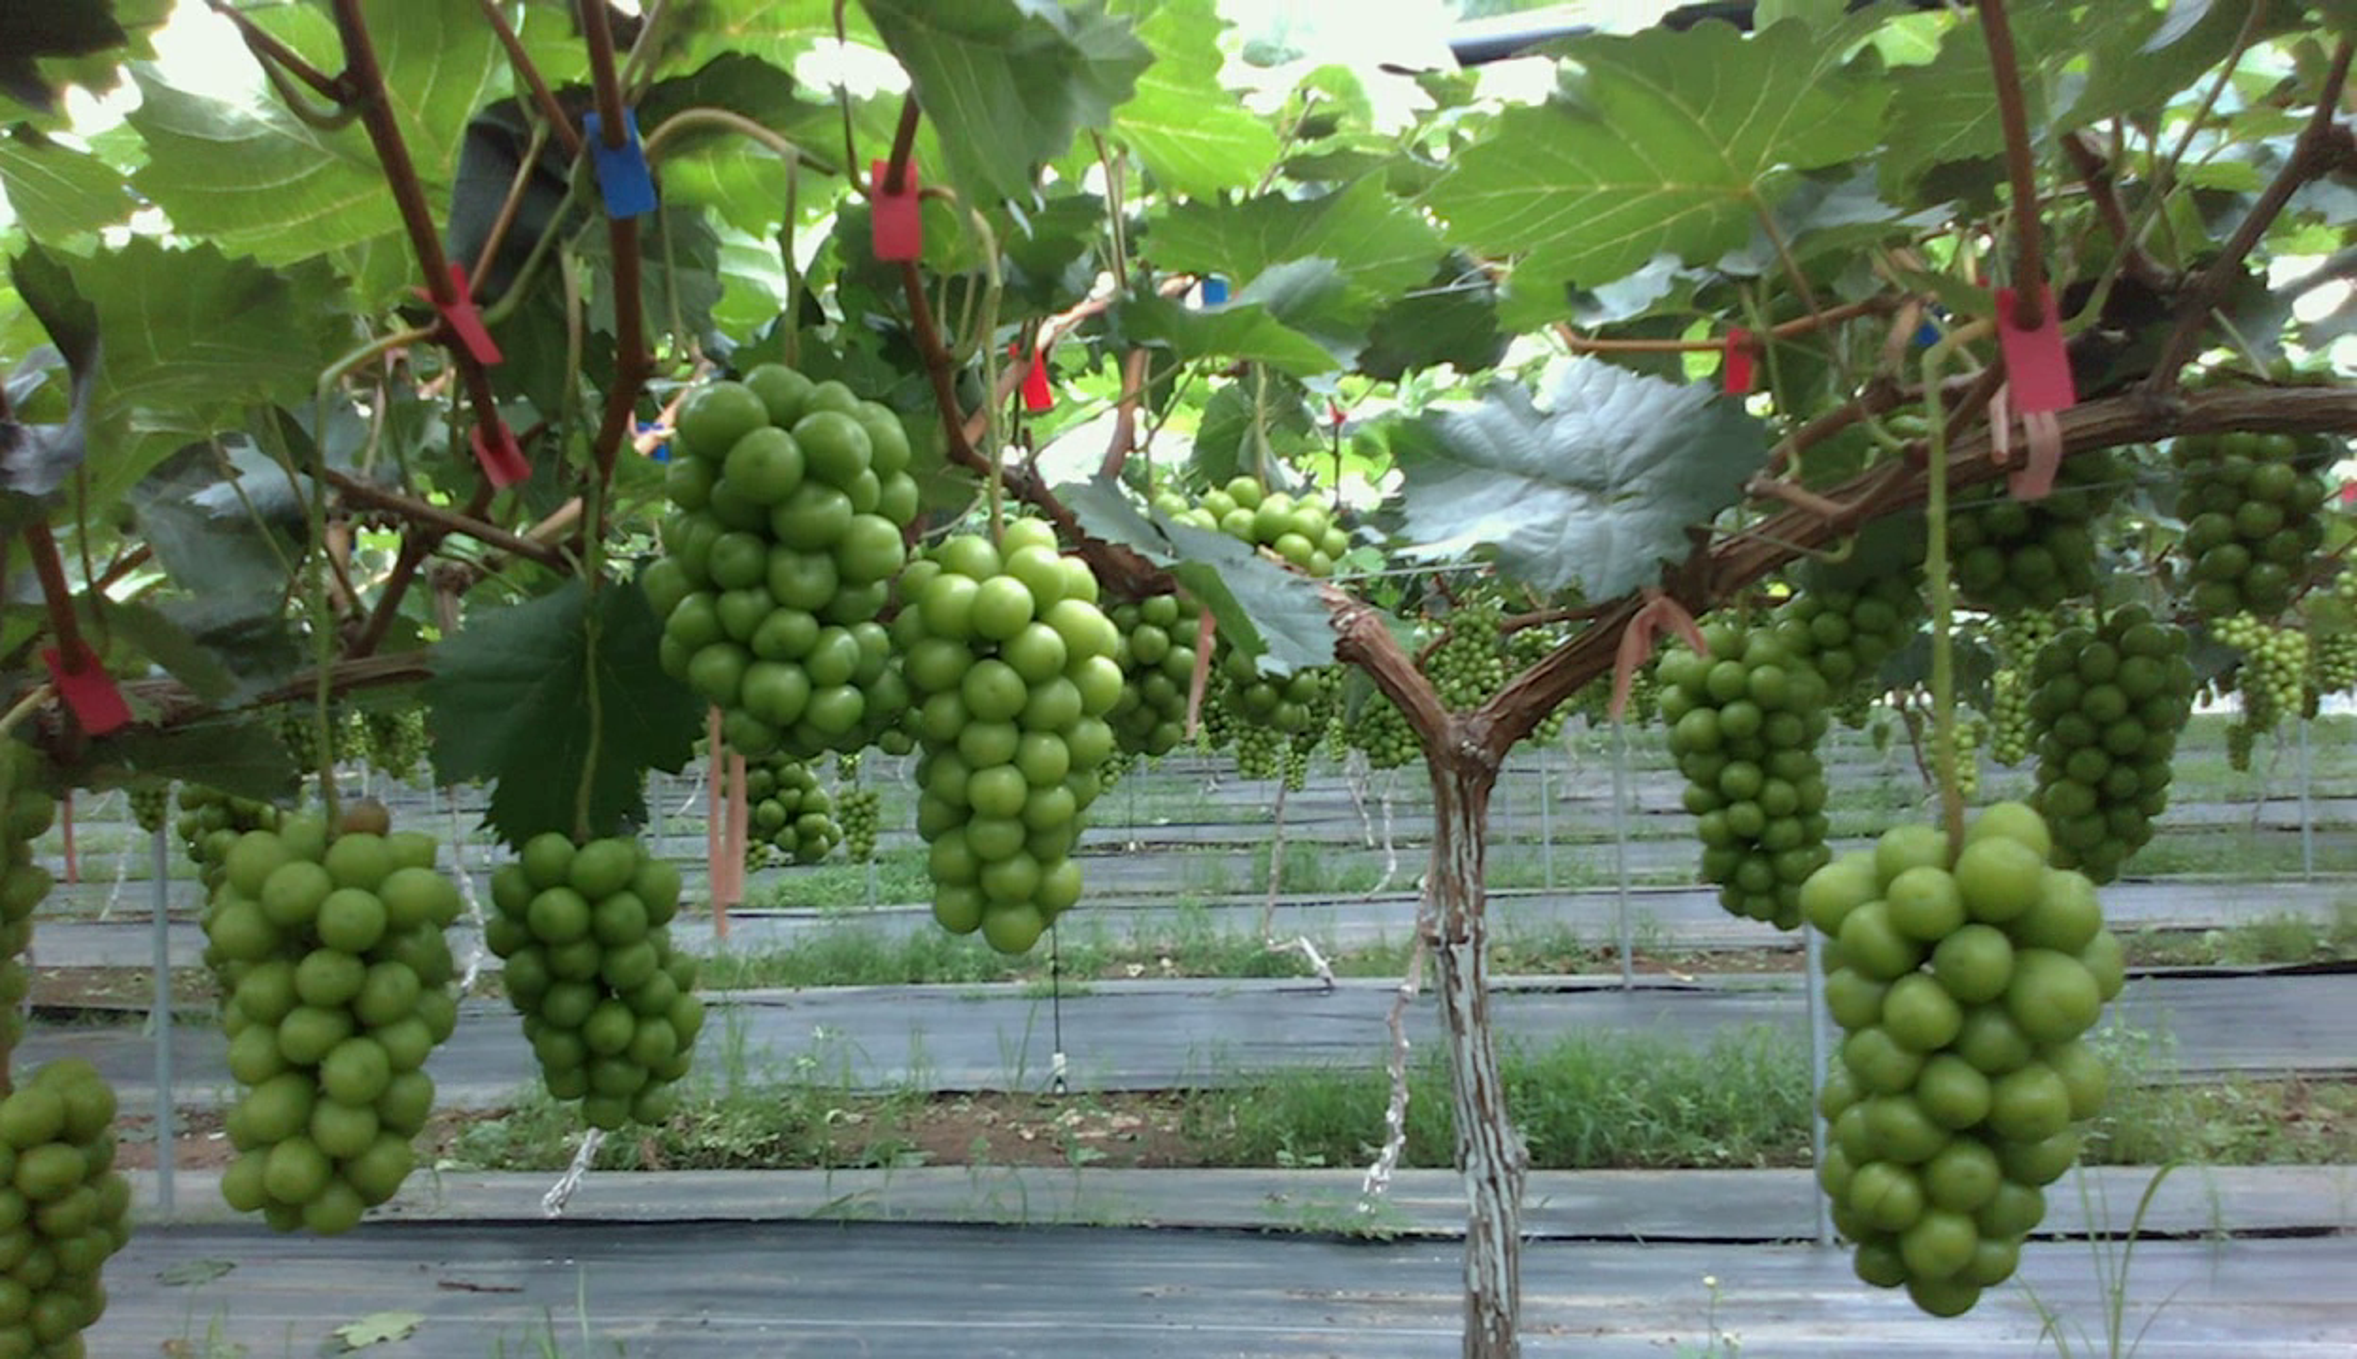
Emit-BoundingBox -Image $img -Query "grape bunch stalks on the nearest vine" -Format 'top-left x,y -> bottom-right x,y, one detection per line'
310,311 -> 444,853
644,108 -> 805,370
572,381 -> 602,851
1921,317 -> 1994,872
920,185 -> 1005,551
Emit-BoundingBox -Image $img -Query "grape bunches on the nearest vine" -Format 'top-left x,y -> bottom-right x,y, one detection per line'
210,795 -> 461,1234
1798,802 -> 2127,1317
890,515 -> 1124,957
640,364 -> 920,759
483,832 -> 704,1134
